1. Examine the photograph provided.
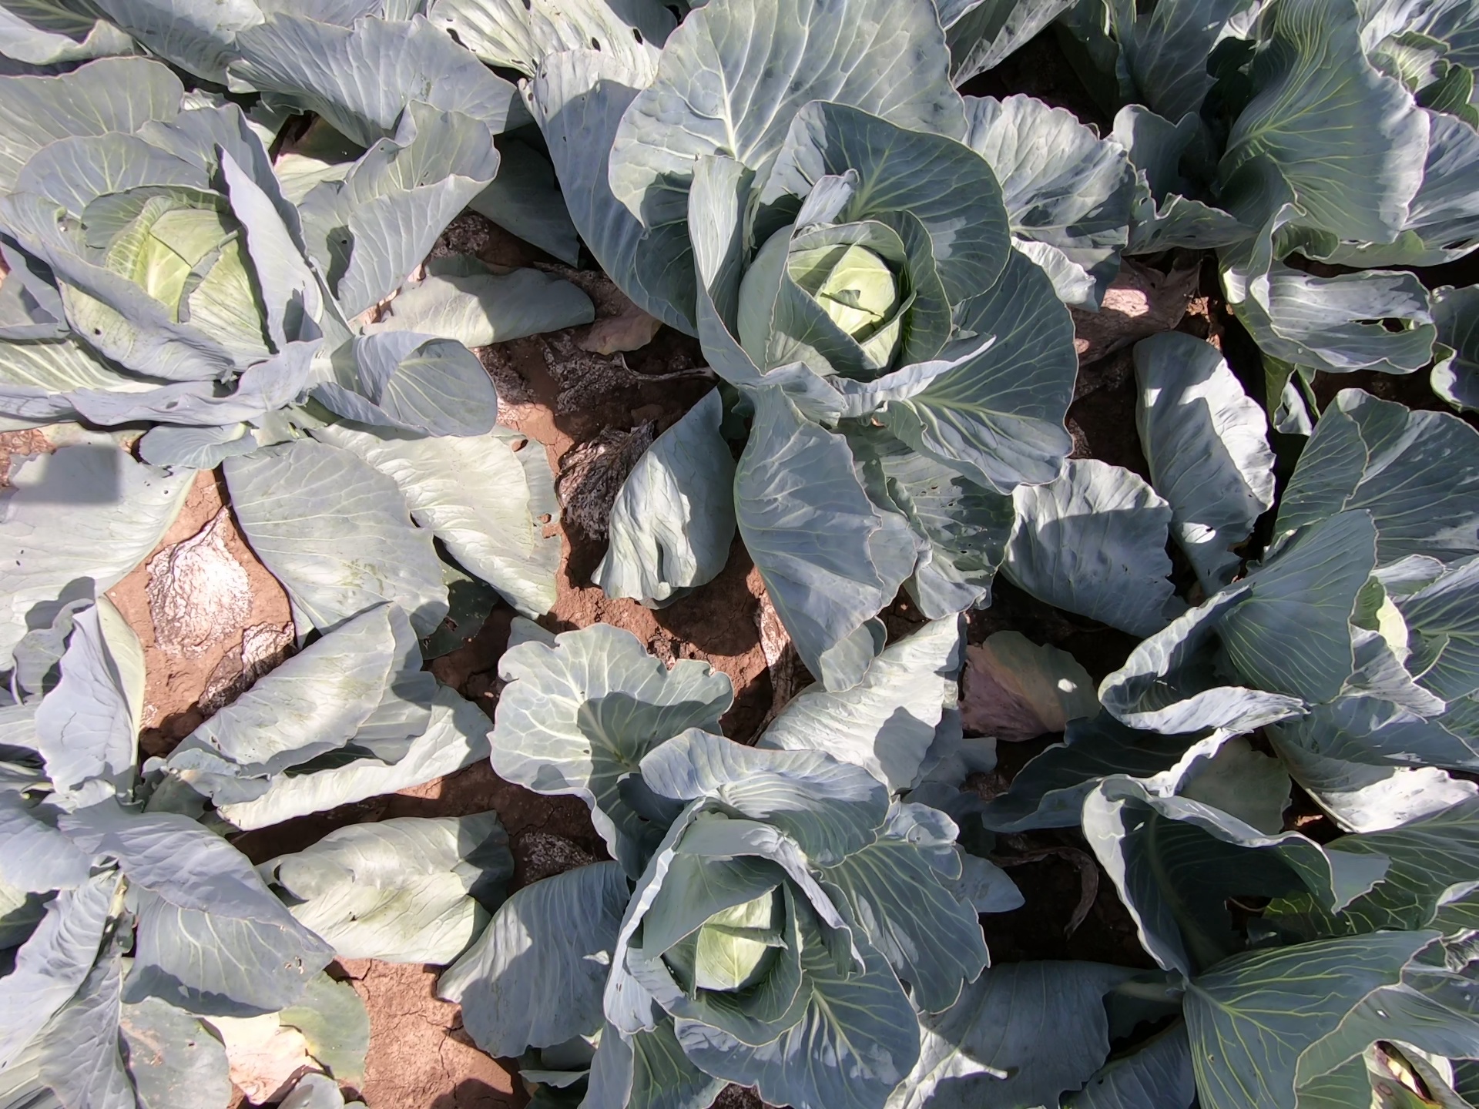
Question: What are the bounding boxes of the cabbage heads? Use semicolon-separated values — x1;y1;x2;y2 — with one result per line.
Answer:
1253;968;1454;1107
1279;75;1434;253
89;206;285;374
1282;587;1410;689
658;851;786;991
742;226;897;390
